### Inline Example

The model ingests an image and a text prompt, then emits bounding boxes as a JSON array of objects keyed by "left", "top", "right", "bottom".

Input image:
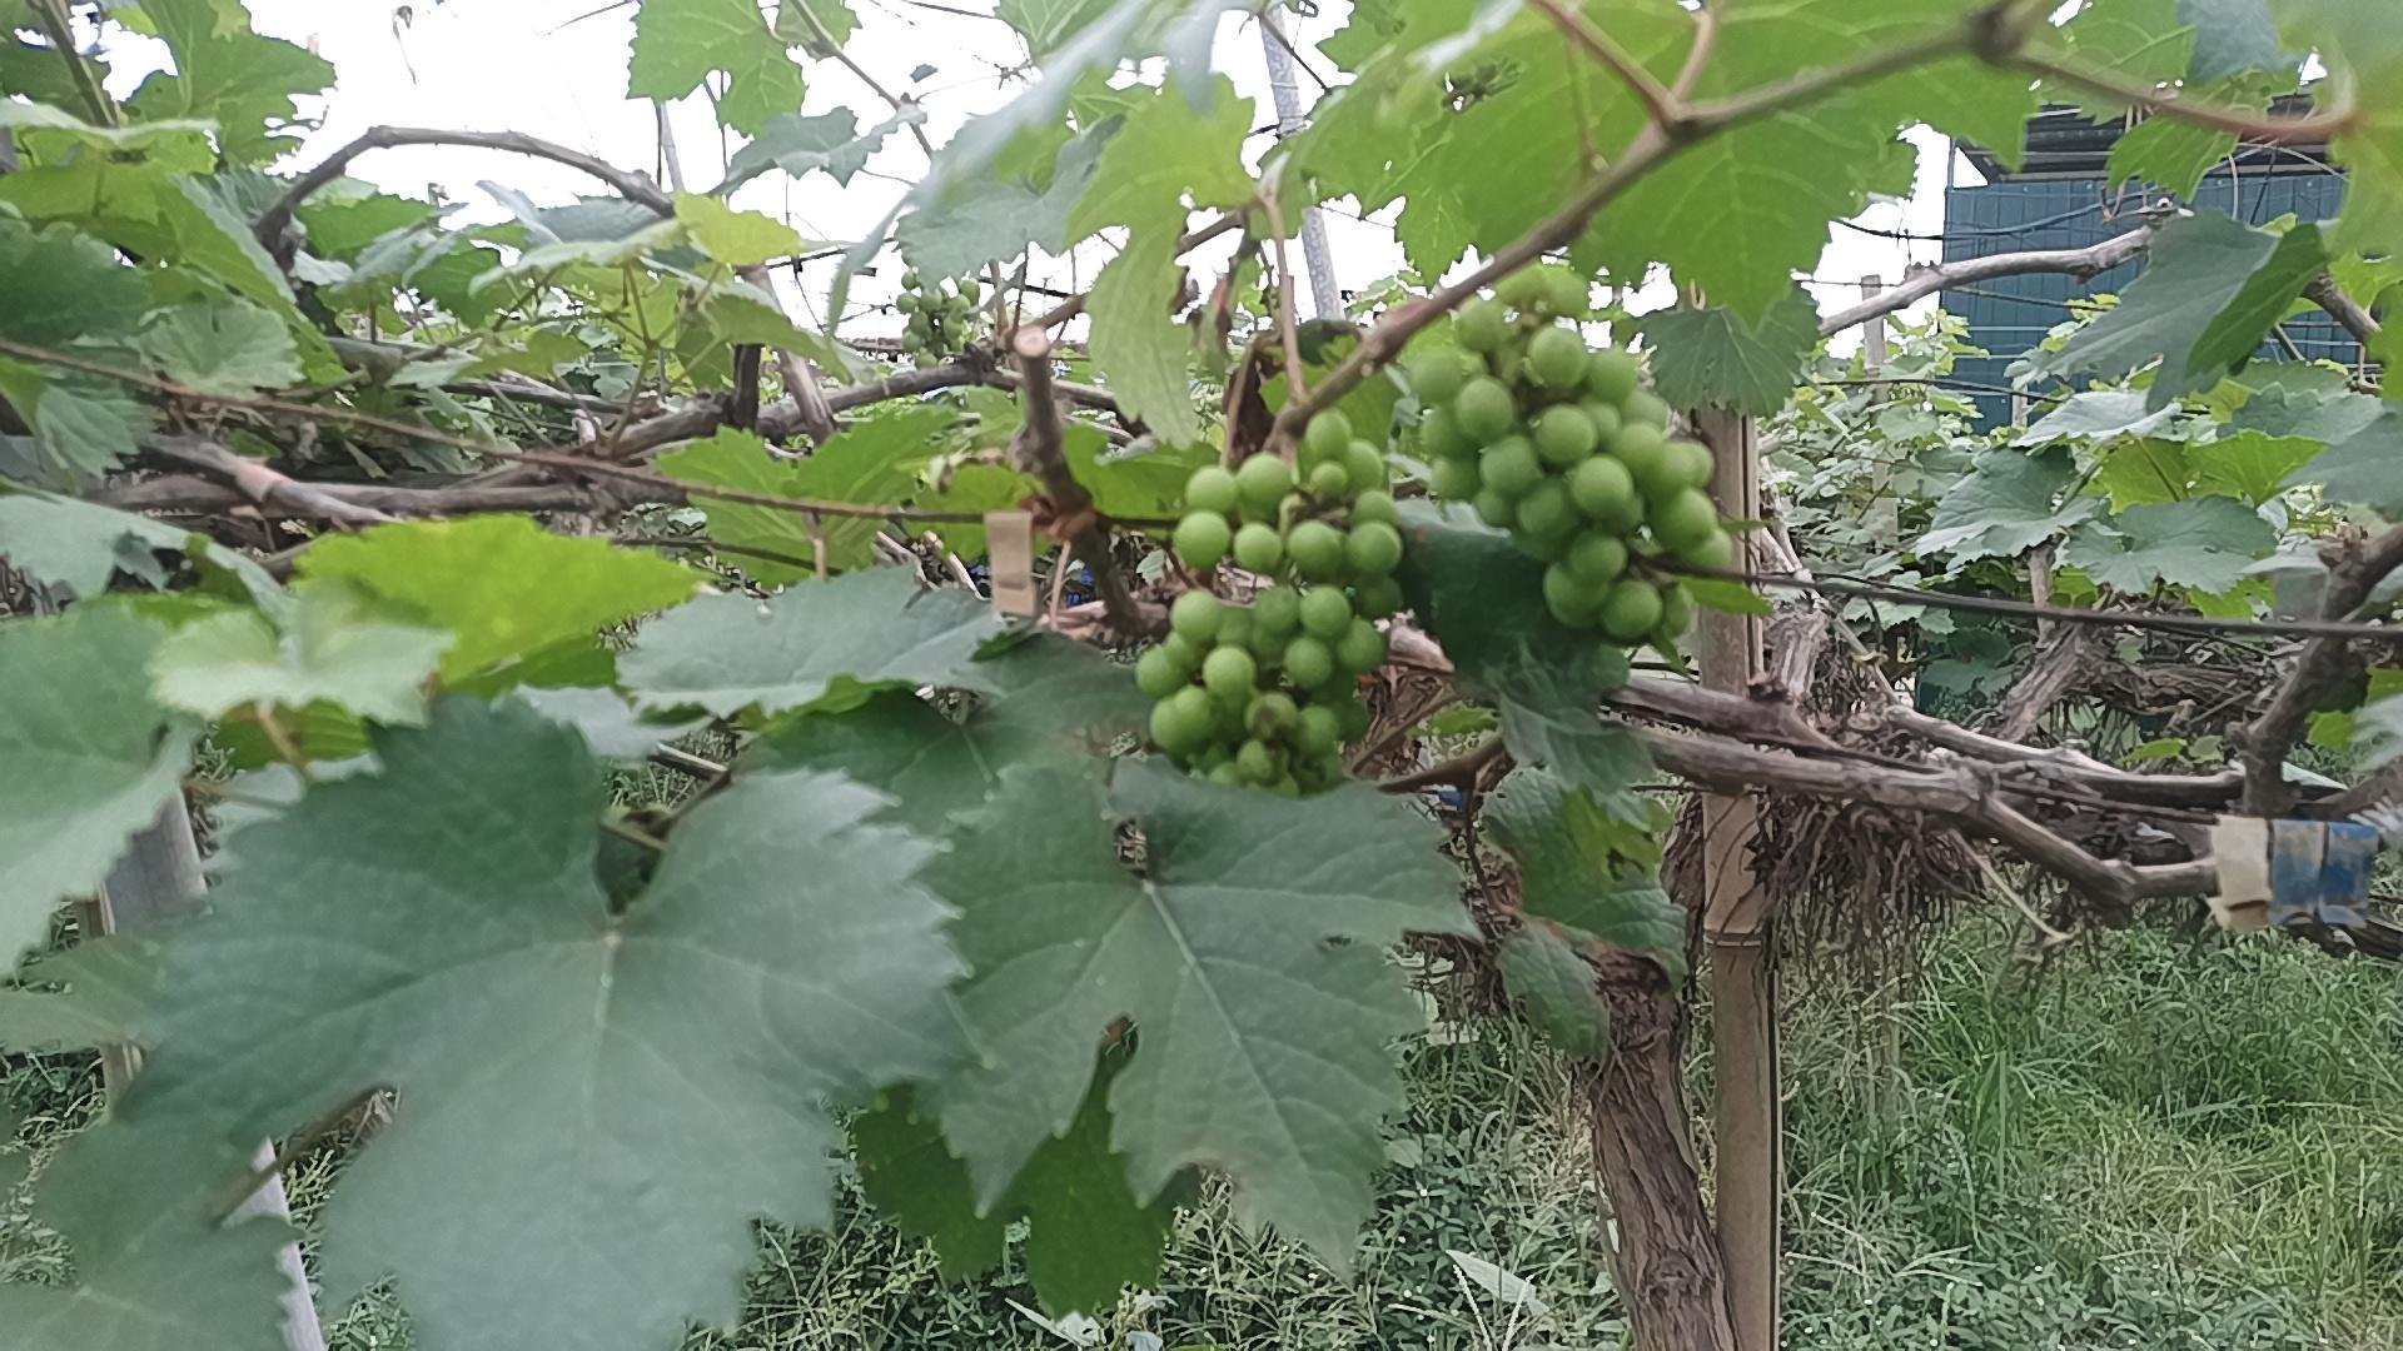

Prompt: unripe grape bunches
[
  {"left": 1136, "top": 409, "right": 1402, "bottom": 793},
  {"left": 1403, "top": 266, "right": 1735, "bottom": 643},
  {"left": 897, "top": 269, "right": 982, "bottom": 368}
]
